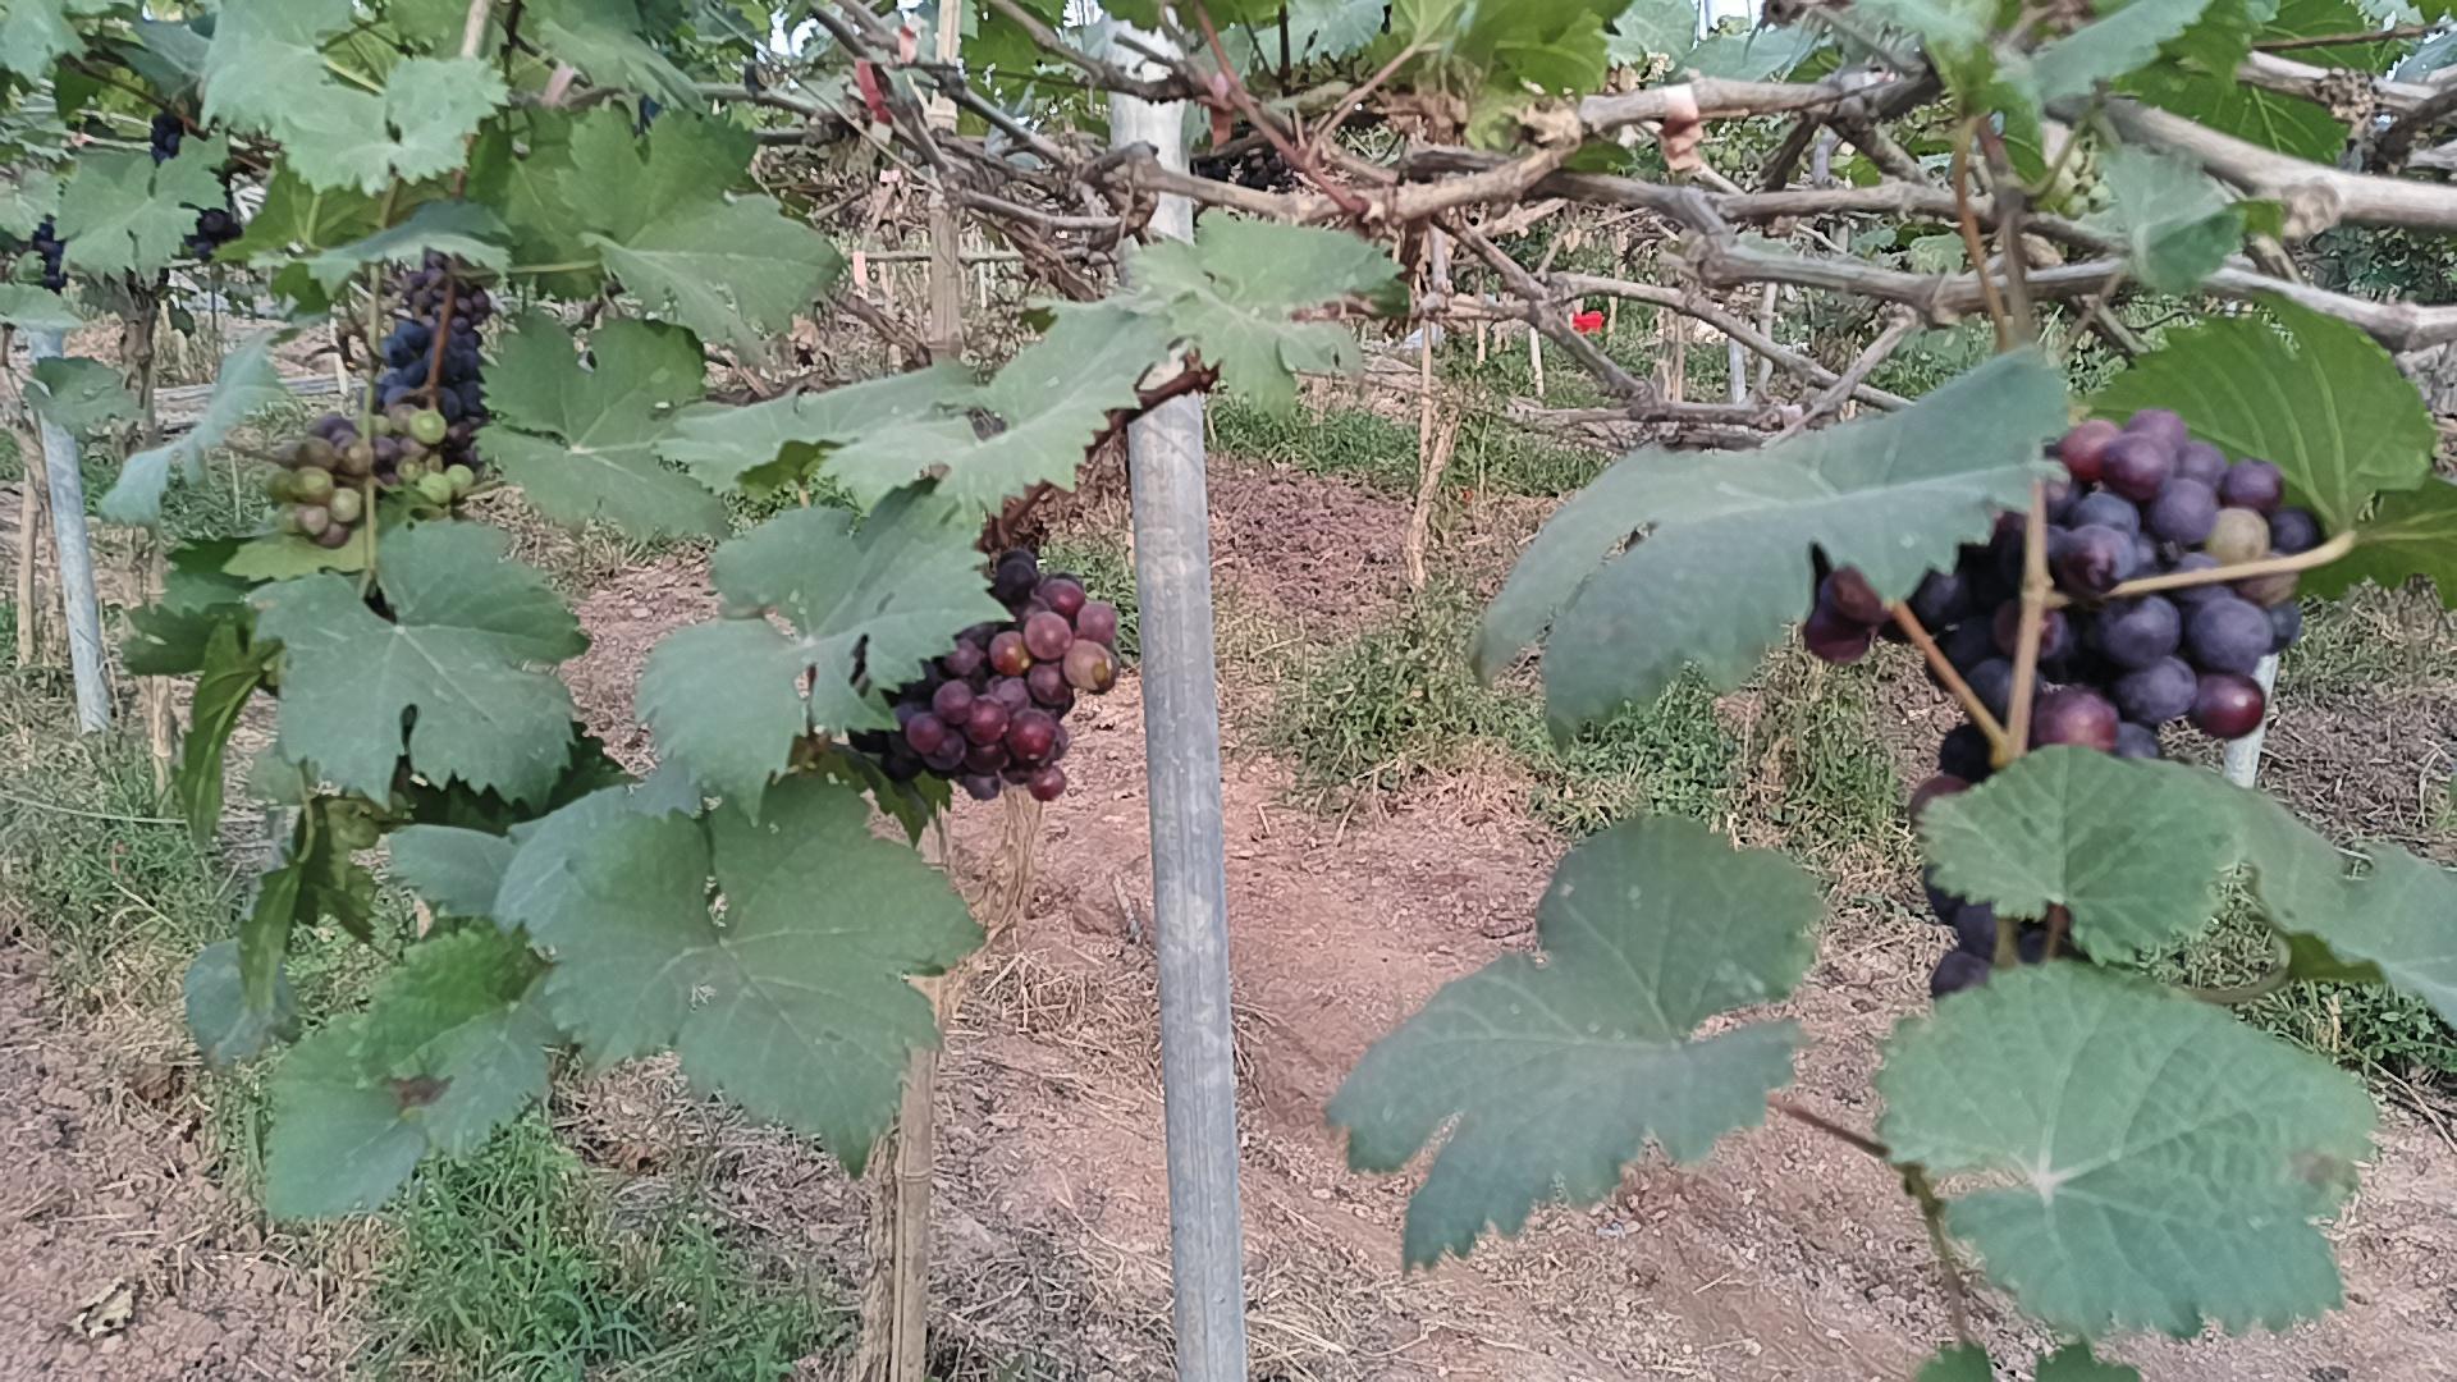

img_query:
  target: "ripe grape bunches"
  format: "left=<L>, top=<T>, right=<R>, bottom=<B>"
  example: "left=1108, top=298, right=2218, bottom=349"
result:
left=865, top=550, right=1117, bottom=800
left=148, top=111, right=241, bottom=260
left=1804, top=409, right=2358, bottom=993
left=375, top=256, right=490, bottom=429
left=28, top=216, right=68, bottom=292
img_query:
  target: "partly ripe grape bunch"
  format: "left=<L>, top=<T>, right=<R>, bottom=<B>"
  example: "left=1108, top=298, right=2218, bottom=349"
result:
left=258, top=385, right=481, bottom=571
